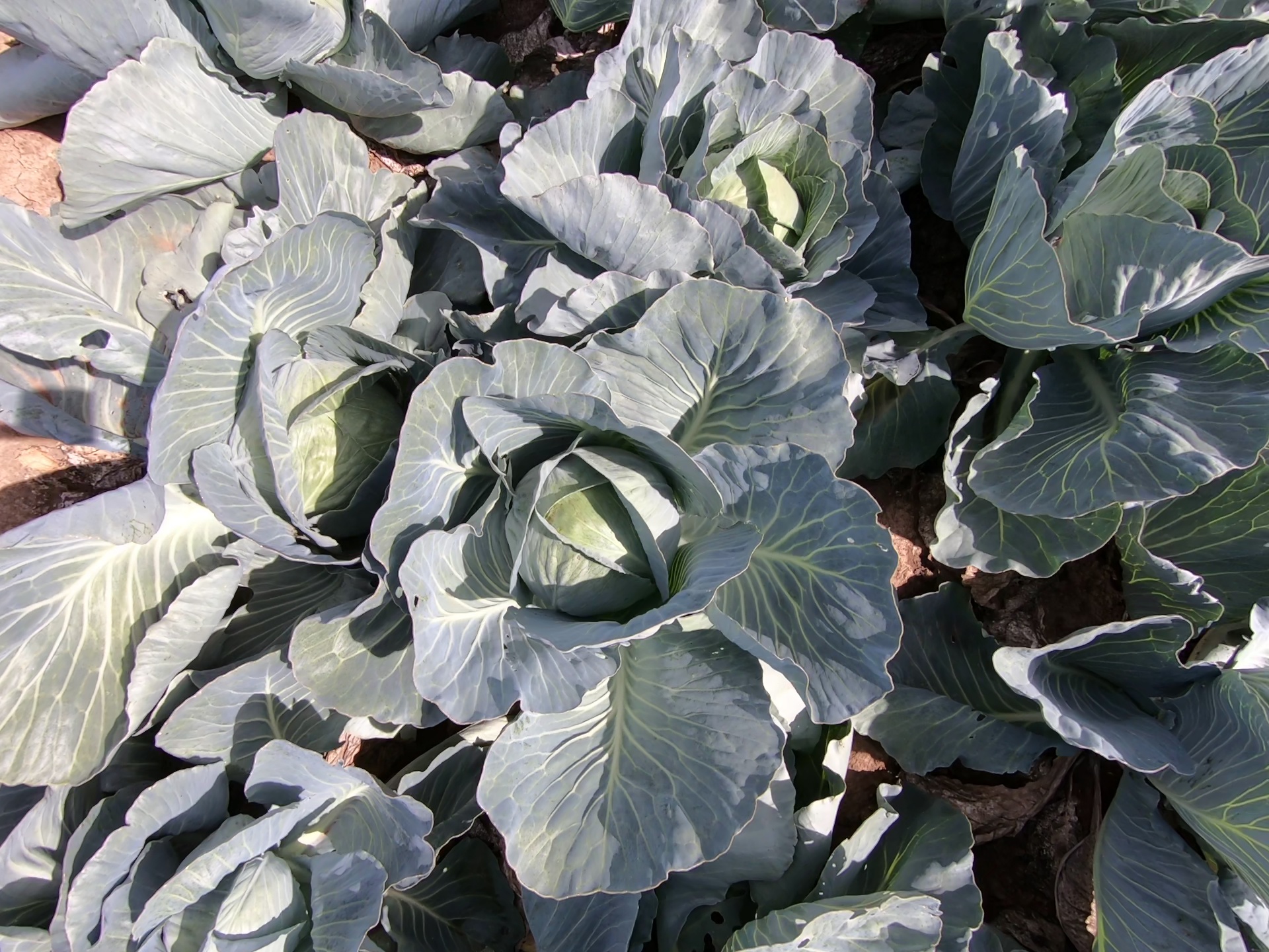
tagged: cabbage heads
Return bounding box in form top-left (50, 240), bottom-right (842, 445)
top-left (163, 847), bottom-right (308, 952)
top-left (229, 359), bottom-right (412, 529)
top-left (680, 148), bottom-right (806, 274)
top-left (502, 443), bottom-right (681, 619)
top-left (215, 1), bottom-right (353, 72)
